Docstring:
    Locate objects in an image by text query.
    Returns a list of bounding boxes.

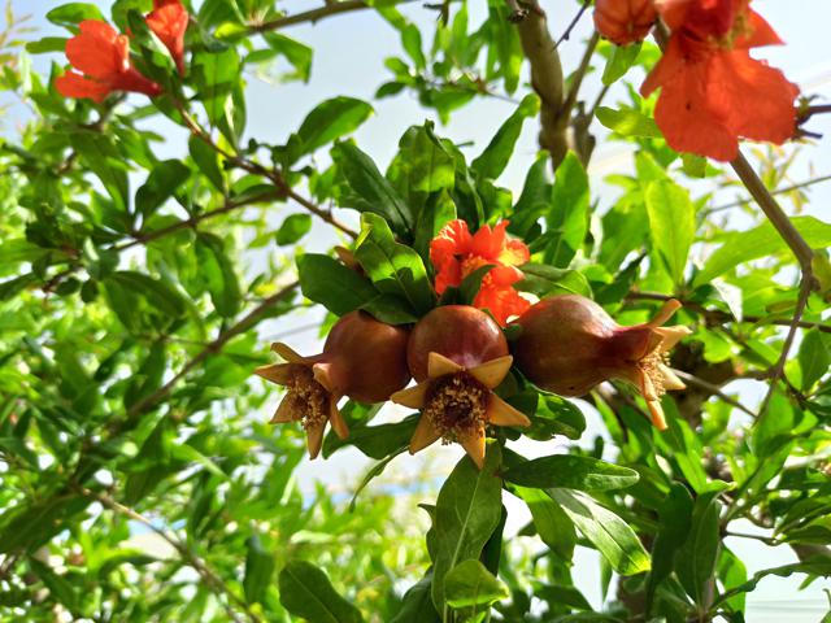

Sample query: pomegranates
[252,308,413,461]
[388,304,531,470]
[512,293,691,431]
